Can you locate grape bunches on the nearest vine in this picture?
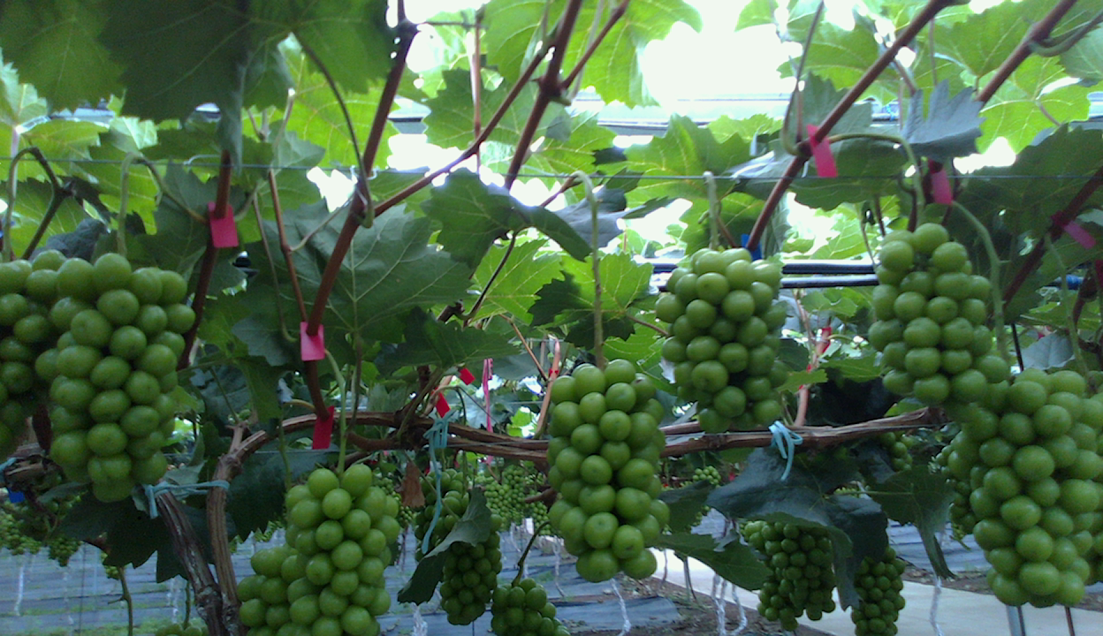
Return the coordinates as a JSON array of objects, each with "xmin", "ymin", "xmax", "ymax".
[
  {"xmin": 950, "ymin": 367, "xmax": 1102, "ymax": 607},
  {"xmin": 655, "ymin": 246, "xmax": 789, "ymax": 434},
  {"xmin": 869, "ymin": 223, "xmax": 1007, "ymax": 421},
  {"xmin": 545, "ymin": 359, "xmax": 670, "ymax": 580},
  {"xmin": 284, "ymin": 464, "xmax": 400, "ymax": 634},
  {"xmin": 0, "ymin": 250, "xmax": 60, "ymax": 462},
  {"xmin": 35, "ymin": 251, "xmax": 194, "ymax": 503}
]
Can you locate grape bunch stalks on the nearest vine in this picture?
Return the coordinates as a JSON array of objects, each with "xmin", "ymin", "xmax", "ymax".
[
  {"xmin": 325, "ymin": 348, "xmax": 347, "ymax": 479},
  {"xmin": 949, "ymin": 199, "xmax": 1013, "ymax": 375},
  {"xmin": 827, "ymin": 131, "xmax": 925, "ymax": 226},
  {"xmin": 576, "ymin": 170, "xmax": 604, "ymax": 369},
  {"xmin": 3, "ymin": 147, "xmax": 62, "ymax": 261},
  {"xmin": 704, "ymin": 171, "xmax": 718, "ymax": 251},
  {"xmin": 117, "ymin": 152, "xmax": 209, "ymax": 261}
]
